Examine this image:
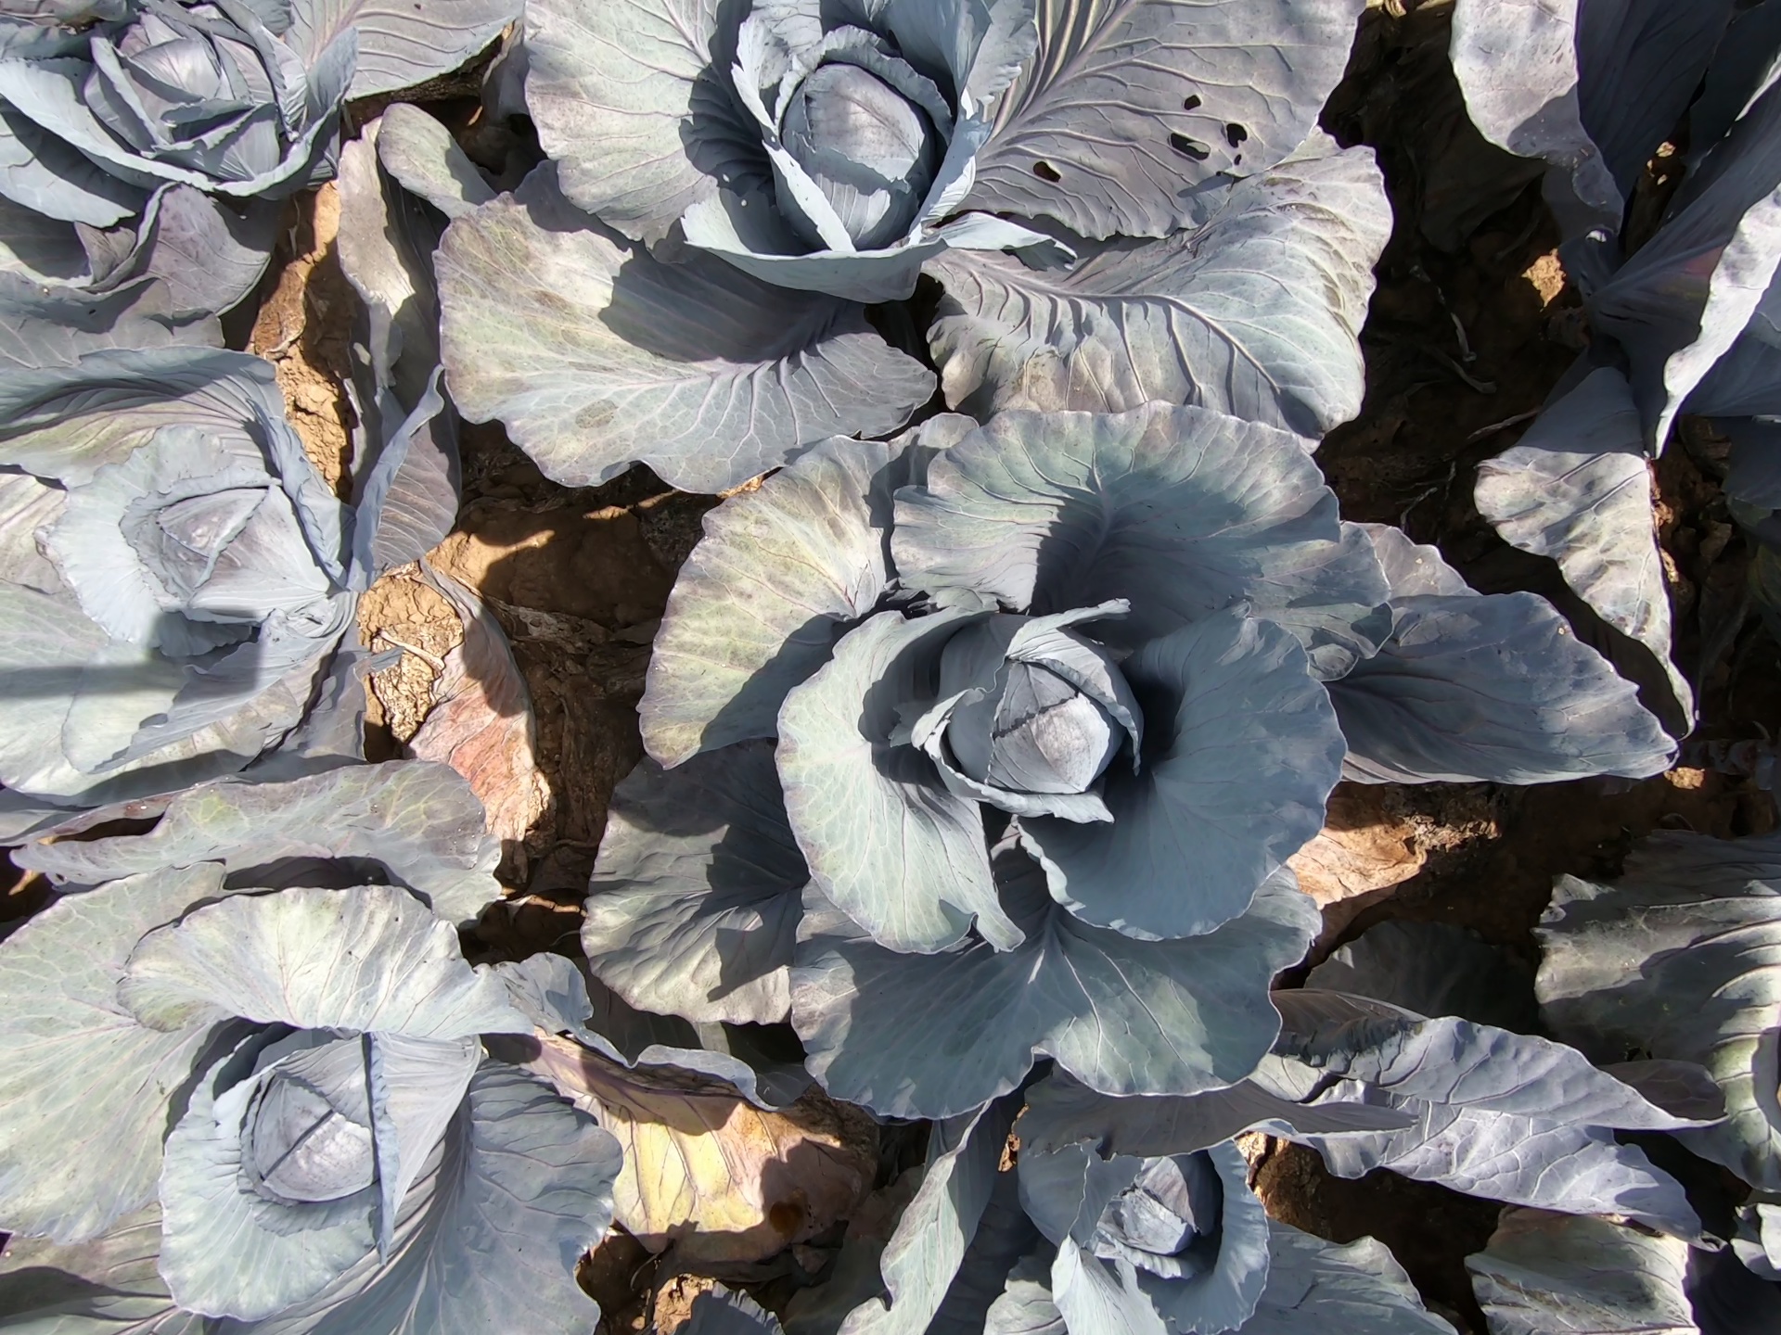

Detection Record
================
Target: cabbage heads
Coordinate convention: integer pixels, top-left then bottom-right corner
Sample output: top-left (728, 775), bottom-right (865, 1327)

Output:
top-left (939, 617), bottom-right (1134, 795)
top-left (769, 64), bottom-right (934, 246)
top-left (158, 489), bottom-right (312, 615)
top-left (1020, 1115), bottom-right (1219, 1264)
top-left (248, 1039), bottom-right (416, 1201)
top-left (109, 37), bottom-right (266, 159)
